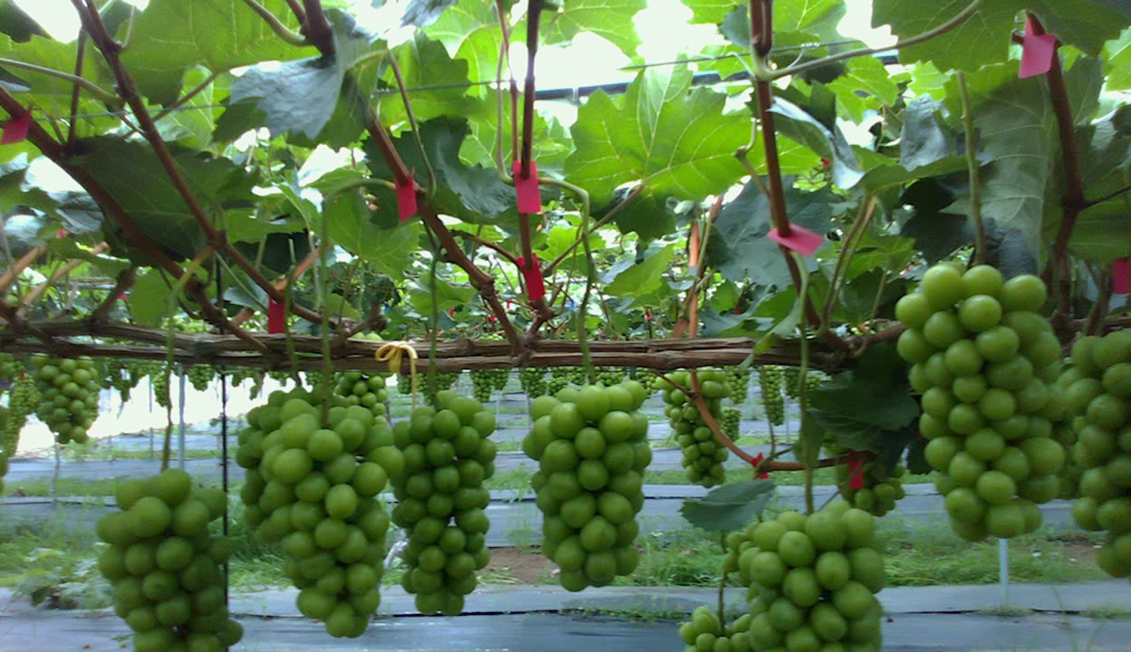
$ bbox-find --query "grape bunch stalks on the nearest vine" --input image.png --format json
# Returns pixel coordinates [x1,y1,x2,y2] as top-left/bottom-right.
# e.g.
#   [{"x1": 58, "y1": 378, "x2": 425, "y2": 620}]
[
  {"x1": 957, "y1": 72, "x2": 988, "y2": 264},
  {"x1": 790, "y1": 252, "x2": 813, "y2": 512},
  {"x1": 429, "y1": 246, "x2": 442, "y2": 409},
  {"x1": 319, "y1": 177, "x2": 389, "y2": 427},
  {"x1": 161, "y1": 254, "x2": 204, "y2": 469},
  {"x1": 283, "y1": 264, "x2": 301, "y2": 384},
  {"x1": 545, "y1": 176, "x2": 595, "y2": 382}
]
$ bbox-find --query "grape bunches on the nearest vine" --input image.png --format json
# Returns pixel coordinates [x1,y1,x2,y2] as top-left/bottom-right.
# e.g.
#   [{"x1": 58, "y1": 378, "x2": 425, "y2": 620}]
[
  {"x1": 96, "y1": 467, "x2": 244, "y2": 651},
  {"x1": 522, "y1": 379, "x2": 652, "y2": 591},
  {"x1": 896, "y1": 262, "x2": 1065, "y2": 542},
  {"x1": 1052, "y1": 328, "x2": 1130, "y2": 571},
  {"x1": 259, "y1": 398, "x2": 403, "y2": 640},
  {"x1": 739, "y1": 502, "x2": 885, "y2": 651},
  {"x1": 234, "y1": 386, "x2": 318, "y2": 544},
  {"x1": 392, "y1": 390, "x2": 498, "y2": 617}
]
